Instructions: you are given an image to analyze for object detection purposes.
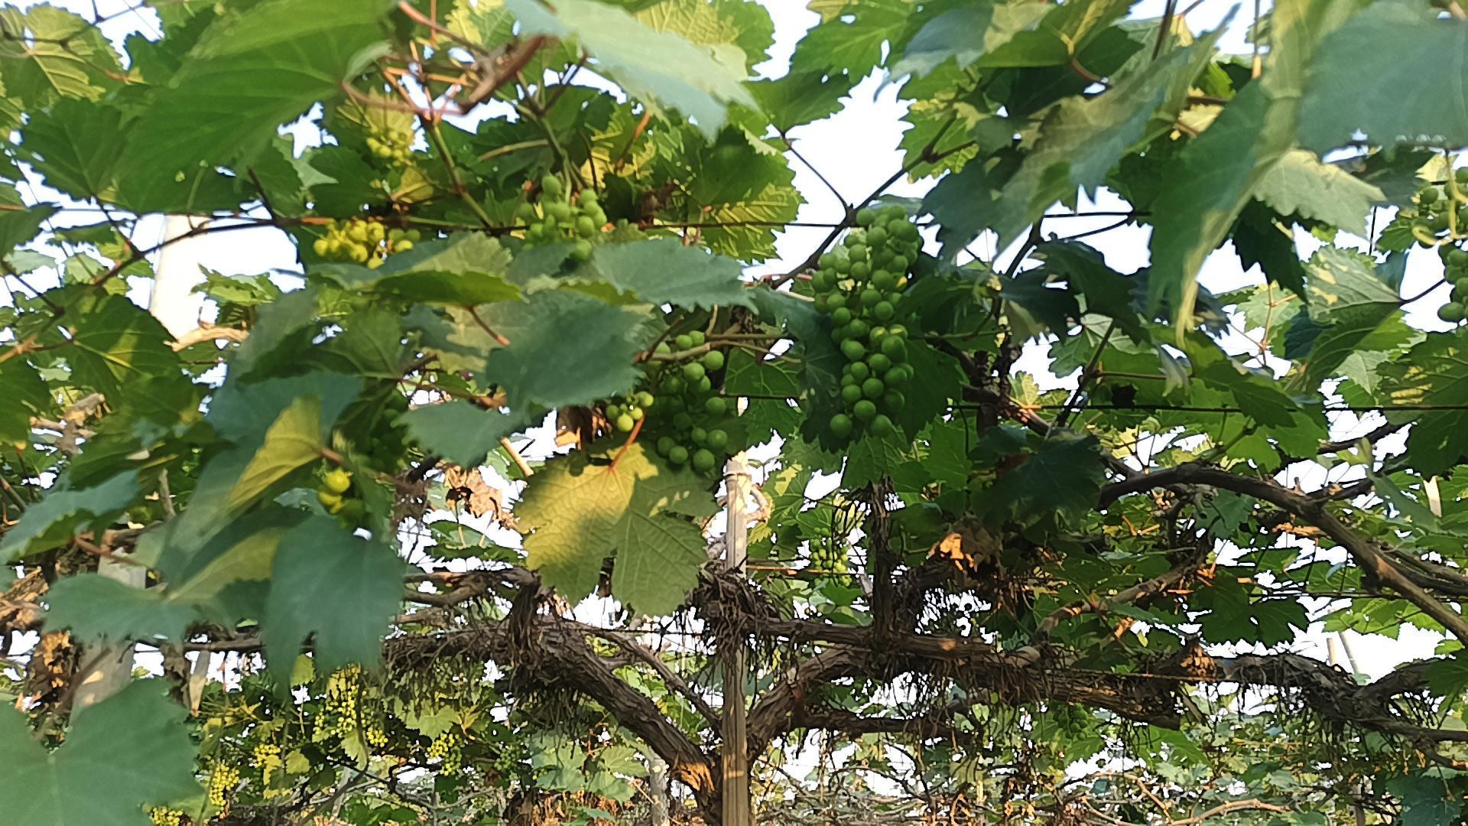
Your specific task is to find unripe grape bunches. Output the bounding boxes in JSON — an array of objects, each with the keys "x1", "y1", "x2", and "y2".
[
  {"x1": 313, "y1": 218, "x2": 419, "y2": 267},
  {"x1": 606, "y1": 330, "x2": 728, "y2": 471},
  {"x1": 812, "y1": 206, "x2": 922, "y2": 438},
  {"x1": 809, "y1": 527, "x2": 853, "y2": 588},
  {"x1": 1411, "y1": 169, "x2": 1467, "y2": 322},
  {"x1": 365, "y1": 126, "x2": 412, "y2": 167},
  {"x1": 320, "y1": 379, "x2": 408, "y2": 528},
  {"x1": 516, "y1": 175, "x2": 607, "y2": 262},
  {"x1": 1051, "y1": 700, "x2": 1089, "y2": 738}
]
